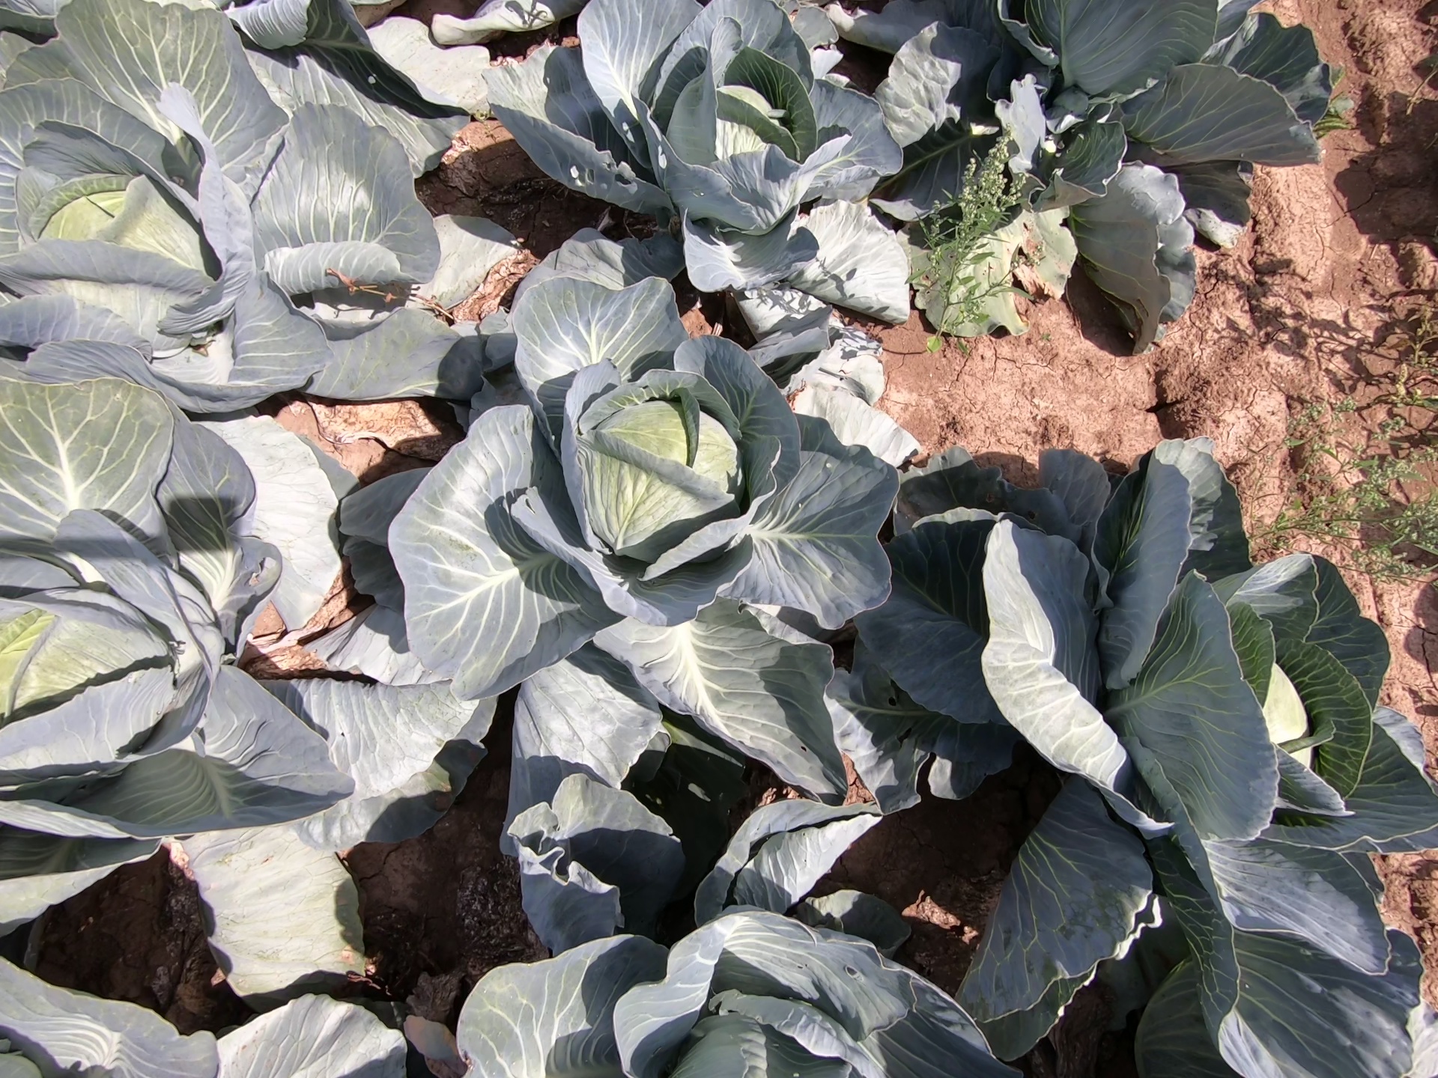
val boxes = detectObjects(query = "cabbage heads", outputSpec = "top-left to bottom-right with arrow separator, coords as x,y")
1,588 -> 173,782
20,173 -> 221,348
1183,642 -> 1317,793
574,399 -> 746,561
683,85 -> 788,195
